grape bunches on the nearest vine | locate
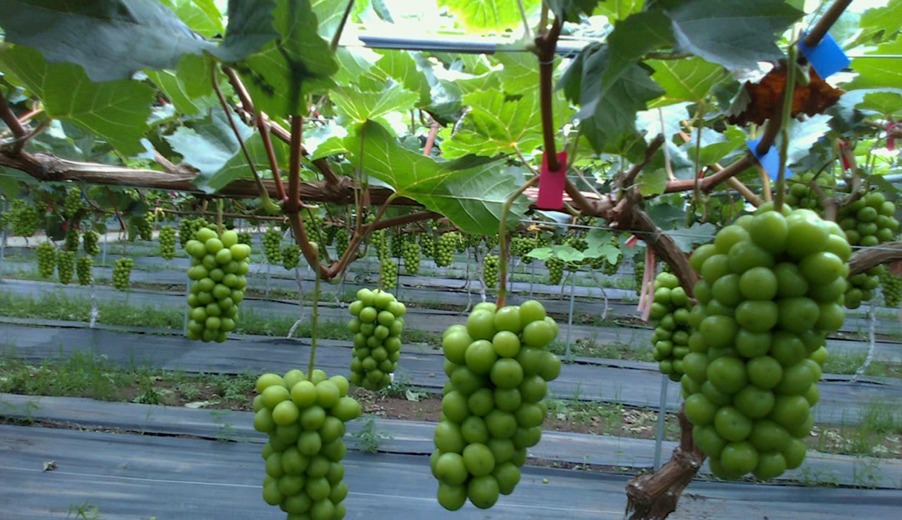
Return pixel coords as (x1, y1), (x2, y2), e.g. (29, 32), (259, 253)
(429, 300), (561, 511)
(680, 201), (852, 480)
(253, 368), (361, 519)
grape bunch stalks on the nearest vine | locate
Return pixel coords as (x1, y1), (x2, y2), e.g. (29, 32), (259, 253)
(495, 174), (539, 313)
(774, 26), (801, 212)
(307, 240), (320, 382)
